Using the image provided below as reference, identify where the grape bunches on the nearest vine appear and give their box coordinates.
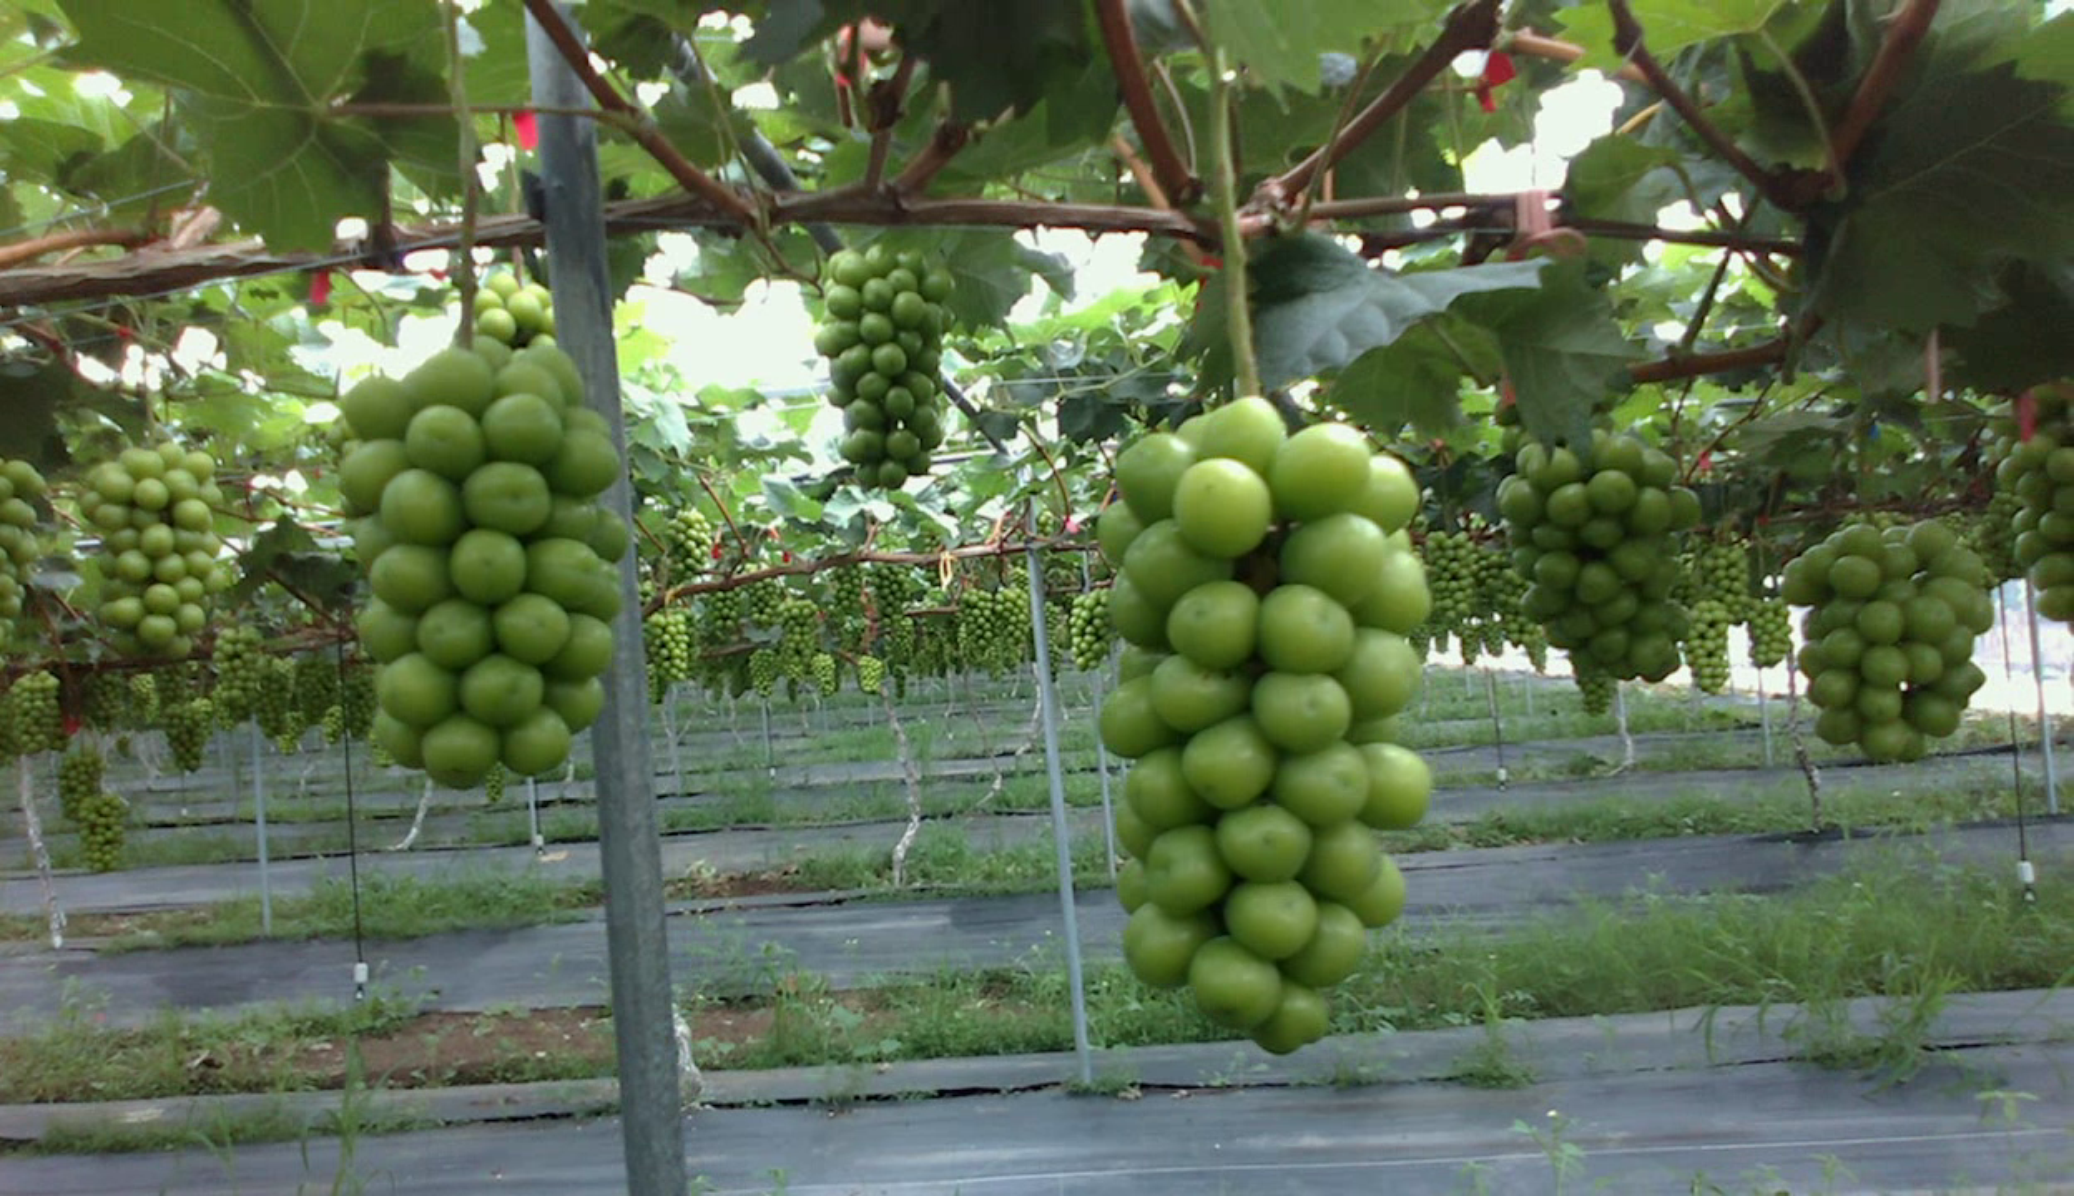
[1094,397,1434,1055]
[337,337,627,791]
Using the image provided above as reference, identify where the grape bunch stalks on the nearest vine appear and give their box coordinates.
[1208,51,1263,400]
[444,2,477,349]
